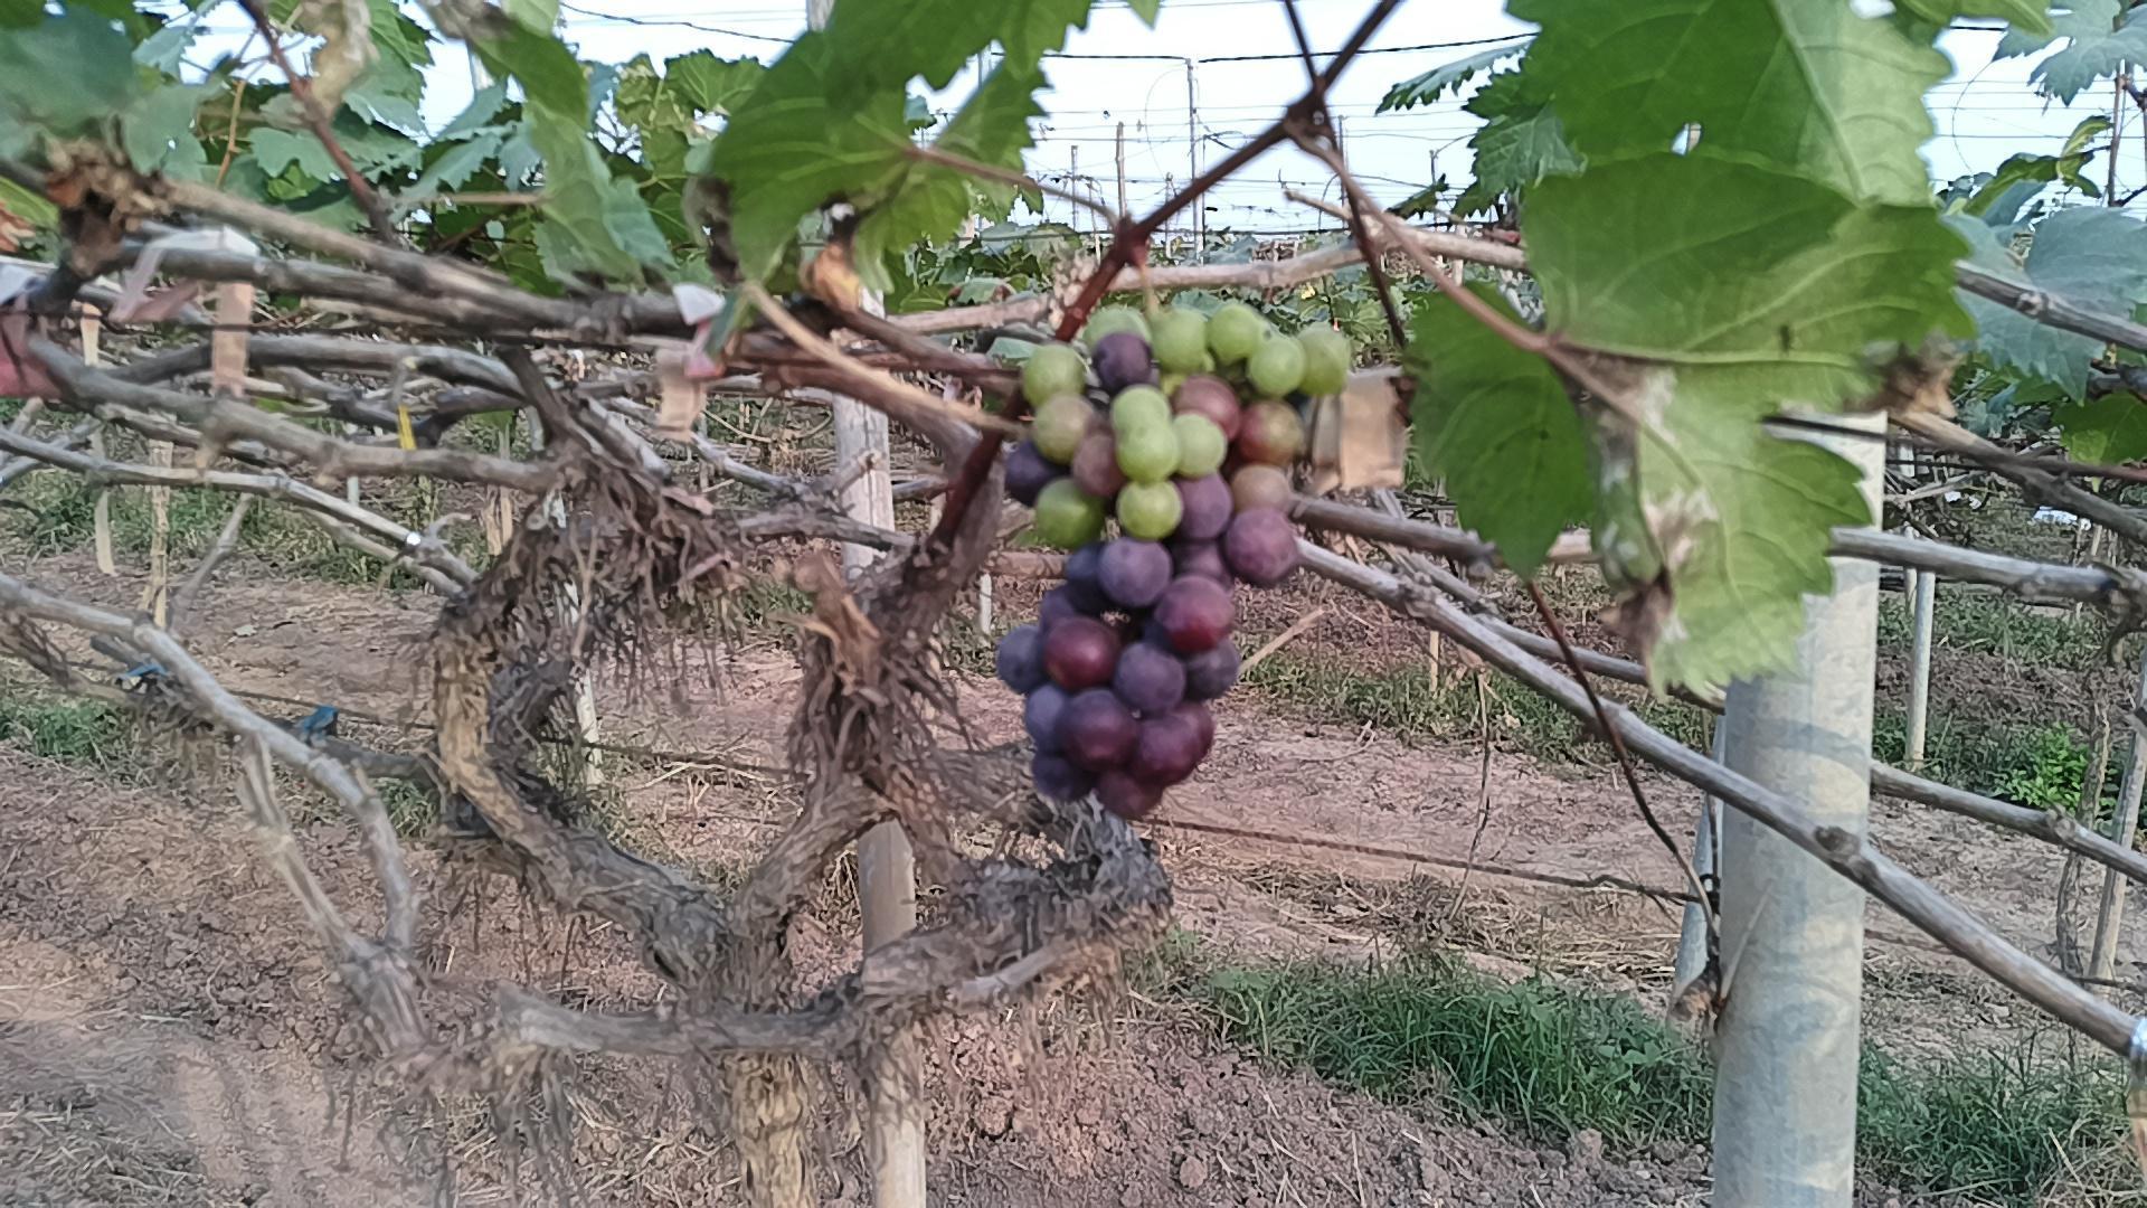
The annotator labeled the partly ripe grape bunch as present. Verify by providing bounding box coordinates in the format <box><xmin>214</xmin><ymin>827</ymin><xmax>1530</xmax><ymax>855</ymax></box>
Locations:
<box><xmin>999</xmin><ymin>294</ymin><xmax>1351</xmax><ymax>819</ymax></box>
